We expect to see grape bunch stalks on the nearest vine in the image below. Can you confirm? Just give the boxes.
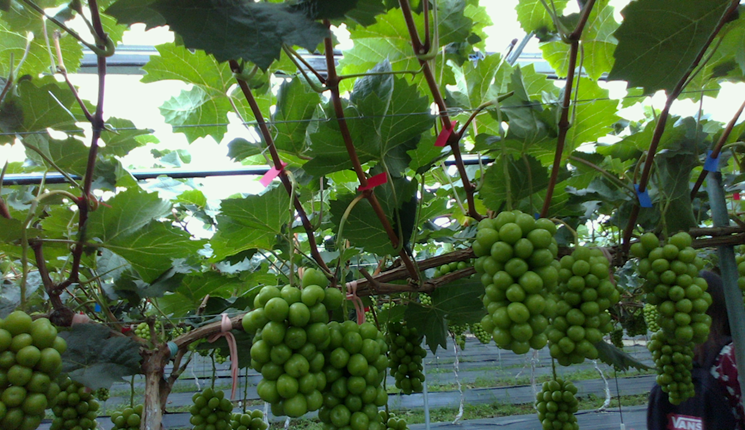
[288,171,297,287]
[20,189,82,310]
[335,196,360,320]
[653,162,669,244]
[552,217,578,247]
[457,91,513,210]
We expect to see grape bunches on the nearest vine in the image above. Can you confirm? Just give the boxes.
[241,268,342,419]
[627,232,712,346]
[0,311,67,429]
[318,321,390,429]
[545,246,620,367]
[471,211,560,356]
